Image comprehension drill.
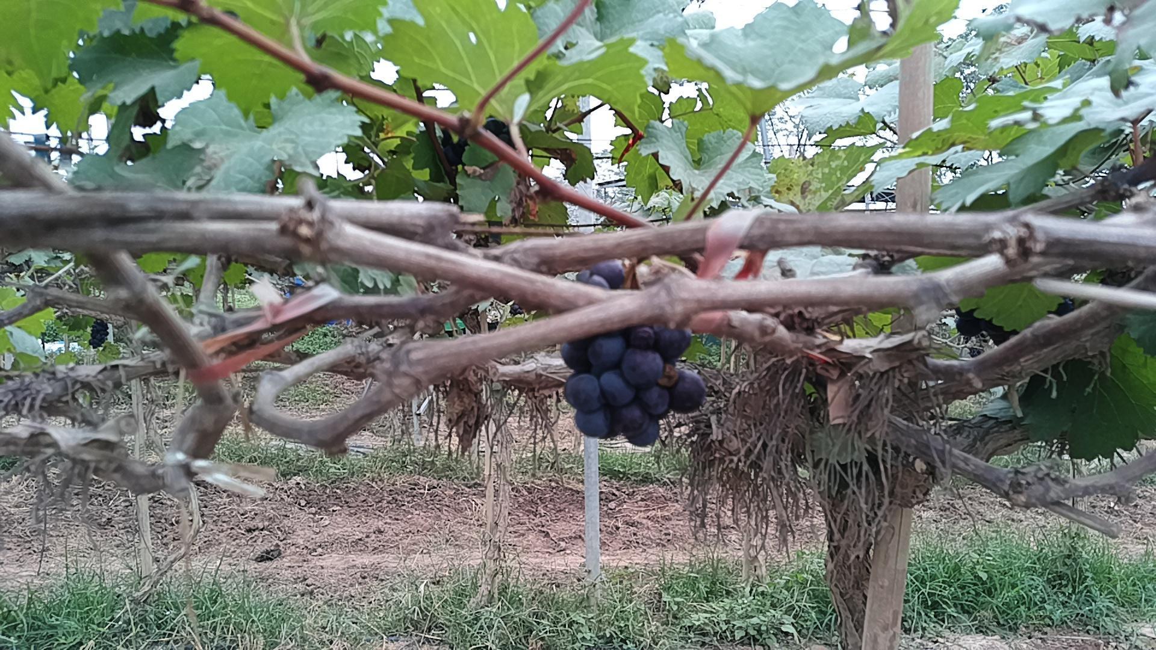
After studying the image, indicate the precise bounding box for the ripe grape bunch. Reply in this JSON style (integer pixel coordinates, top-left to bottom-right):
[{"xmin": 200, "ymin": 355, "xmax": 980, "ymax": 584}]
[{"xmin": 540, "ymin": 260, "xmax": 705, "ymax": 445}]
